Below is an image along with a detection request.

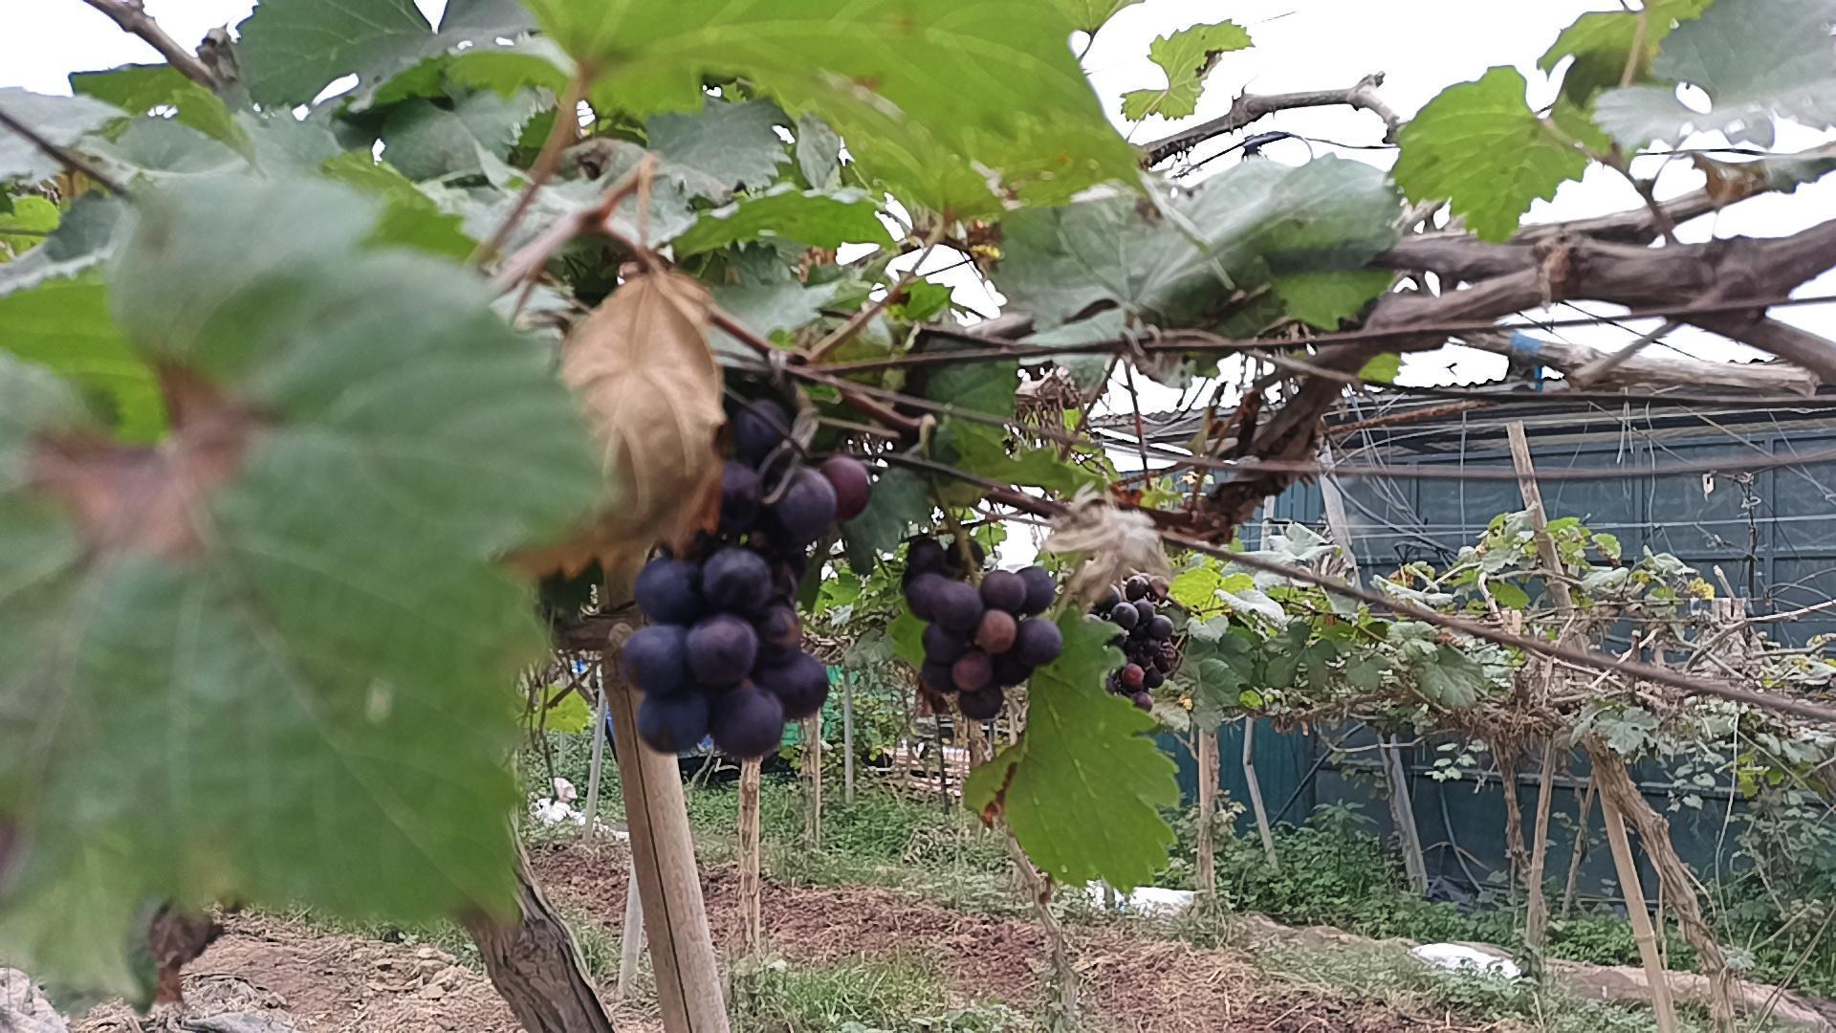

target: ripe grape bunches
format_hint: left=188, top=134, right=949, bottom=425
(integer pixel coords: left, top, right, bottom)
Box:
left=1092, top=573, right=1184, bottom=709
left=904, top=536, right=1061, bottom=720
left=622, top=381, right=869, bottom=759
